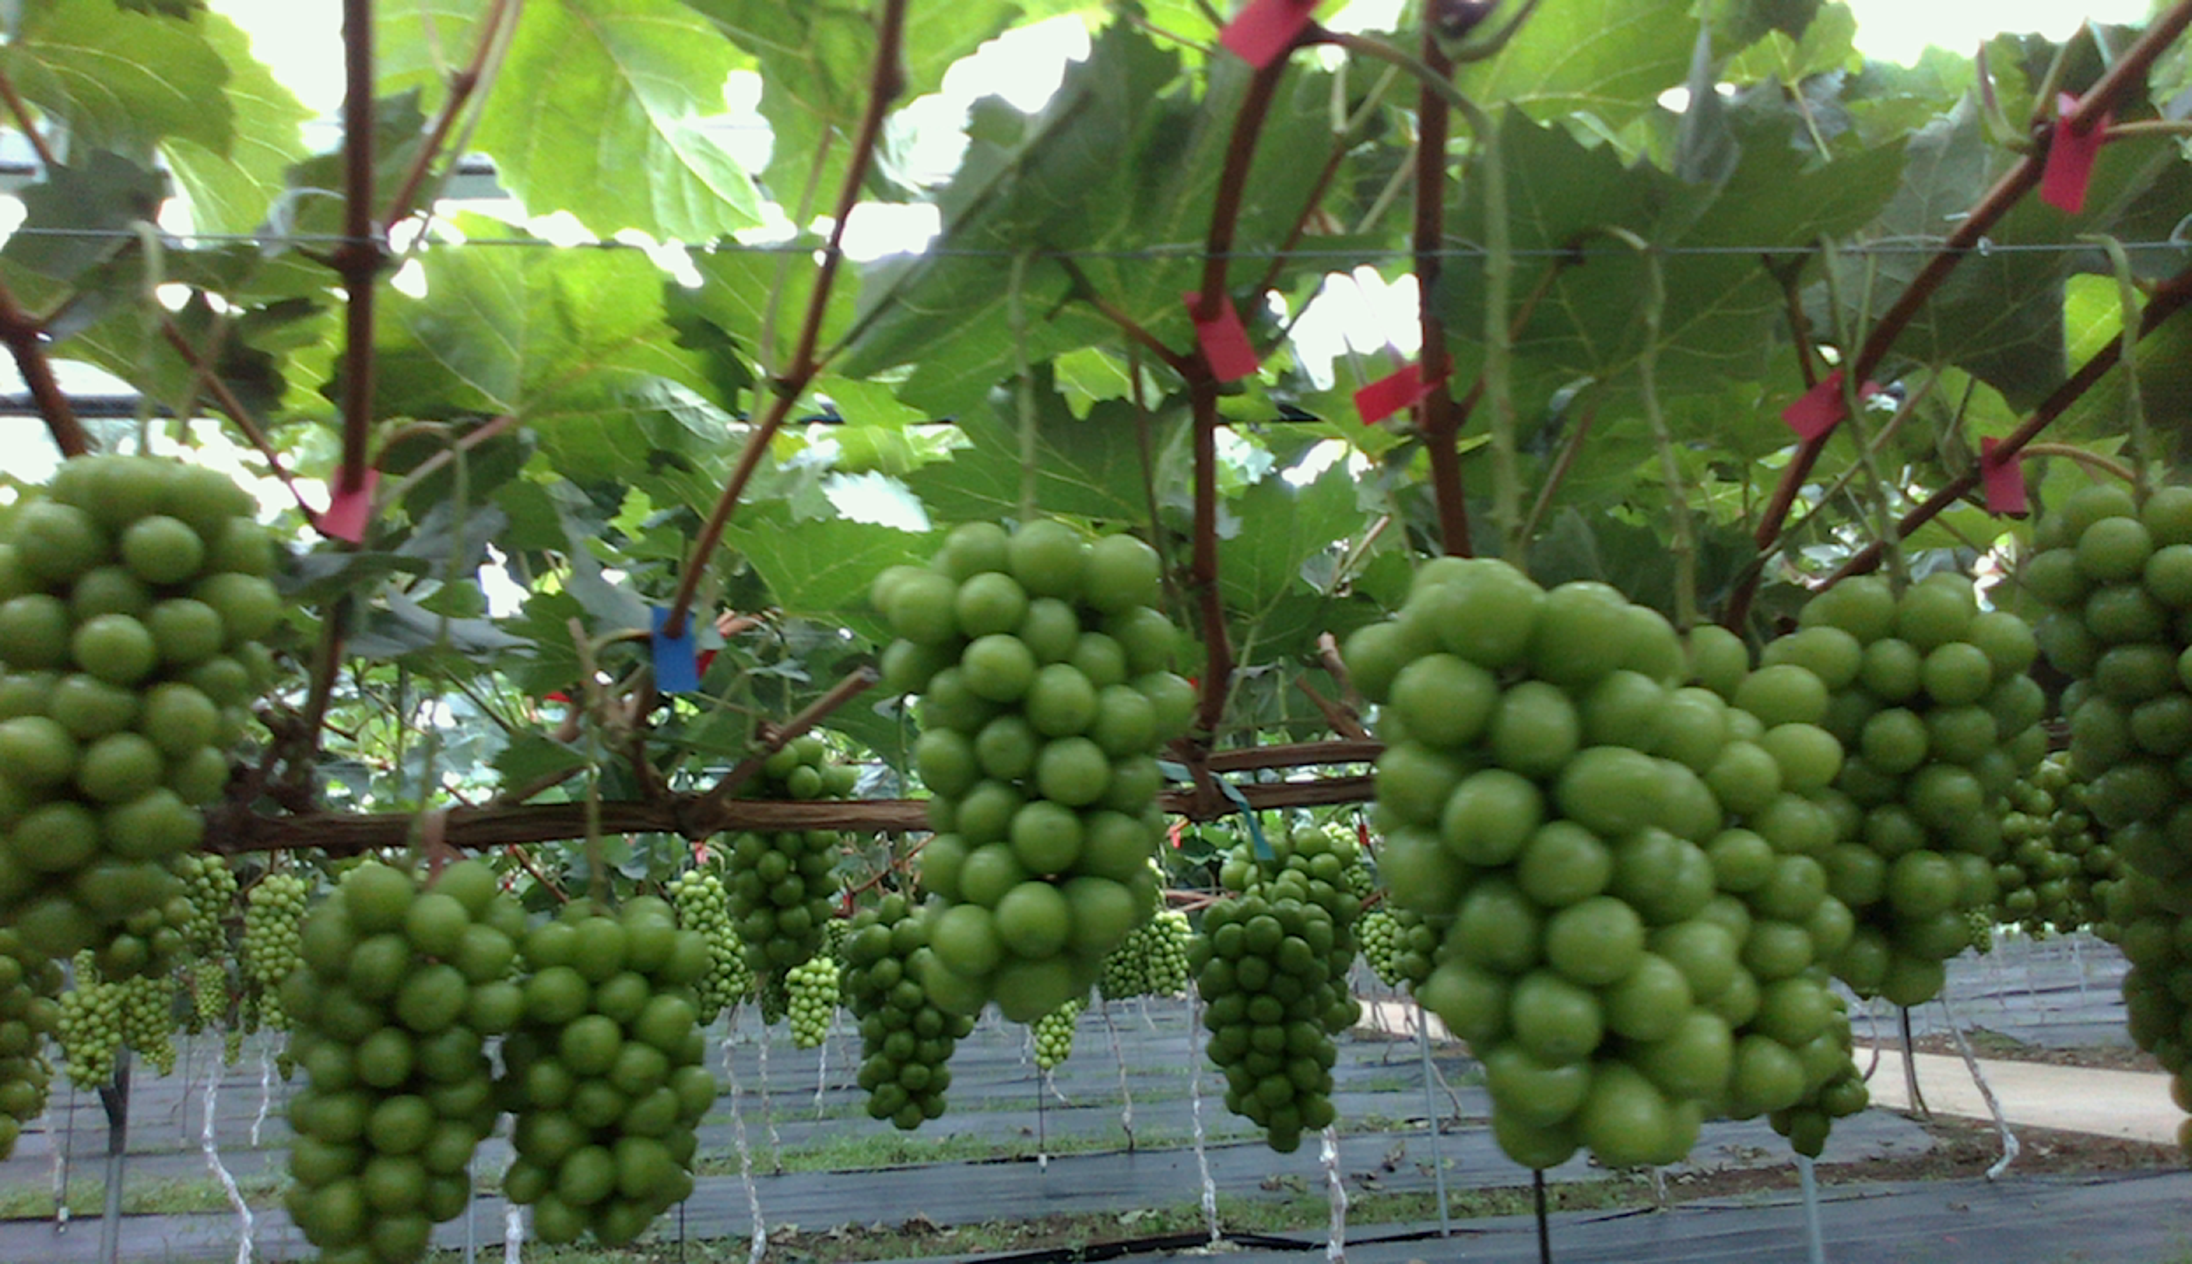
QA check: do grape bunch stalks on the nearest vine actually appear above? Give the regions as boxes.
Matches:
[1323,26,1530,572]
[371,421,469,871]
[581,628,652,915]
[1814,235,1907,600]
[1558,218,1700,634]
[1006,253,1038,523]
[2106,248,2150,502]
[133,233,165,458]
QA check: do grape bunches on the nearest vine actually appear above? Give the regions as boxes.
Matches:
[864,520,1194,1025]
[1686,625,1853,1110]
[1342,555,1758,1171]
[1755,572,2043,1006]
[2025,485,2190,916]
[11,456,274,959]
[499,895,715,1246]
[276,860,527,1260]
